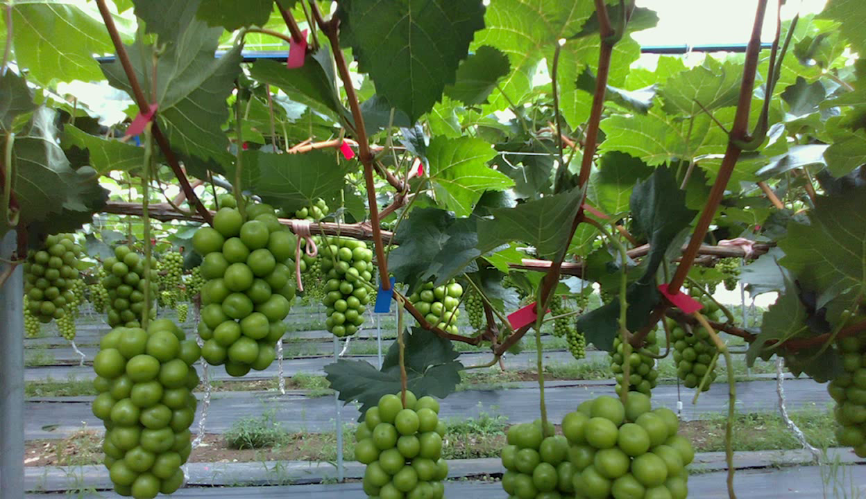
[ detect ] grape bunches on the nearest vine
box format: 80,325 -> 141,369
501,419 -> 584,498
354,390 -> 448,498
192,202 -> 297,377
561,392 -> 693,498
91,318 -> 201,498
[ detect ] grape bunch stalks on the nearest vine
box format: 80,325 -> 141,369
536,275 -> 548,439
396,295 -> 407,408
234,27 -> 290,223
581,215 -> 631,406
141,121 -> 151,331
693,310 -> 735,498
